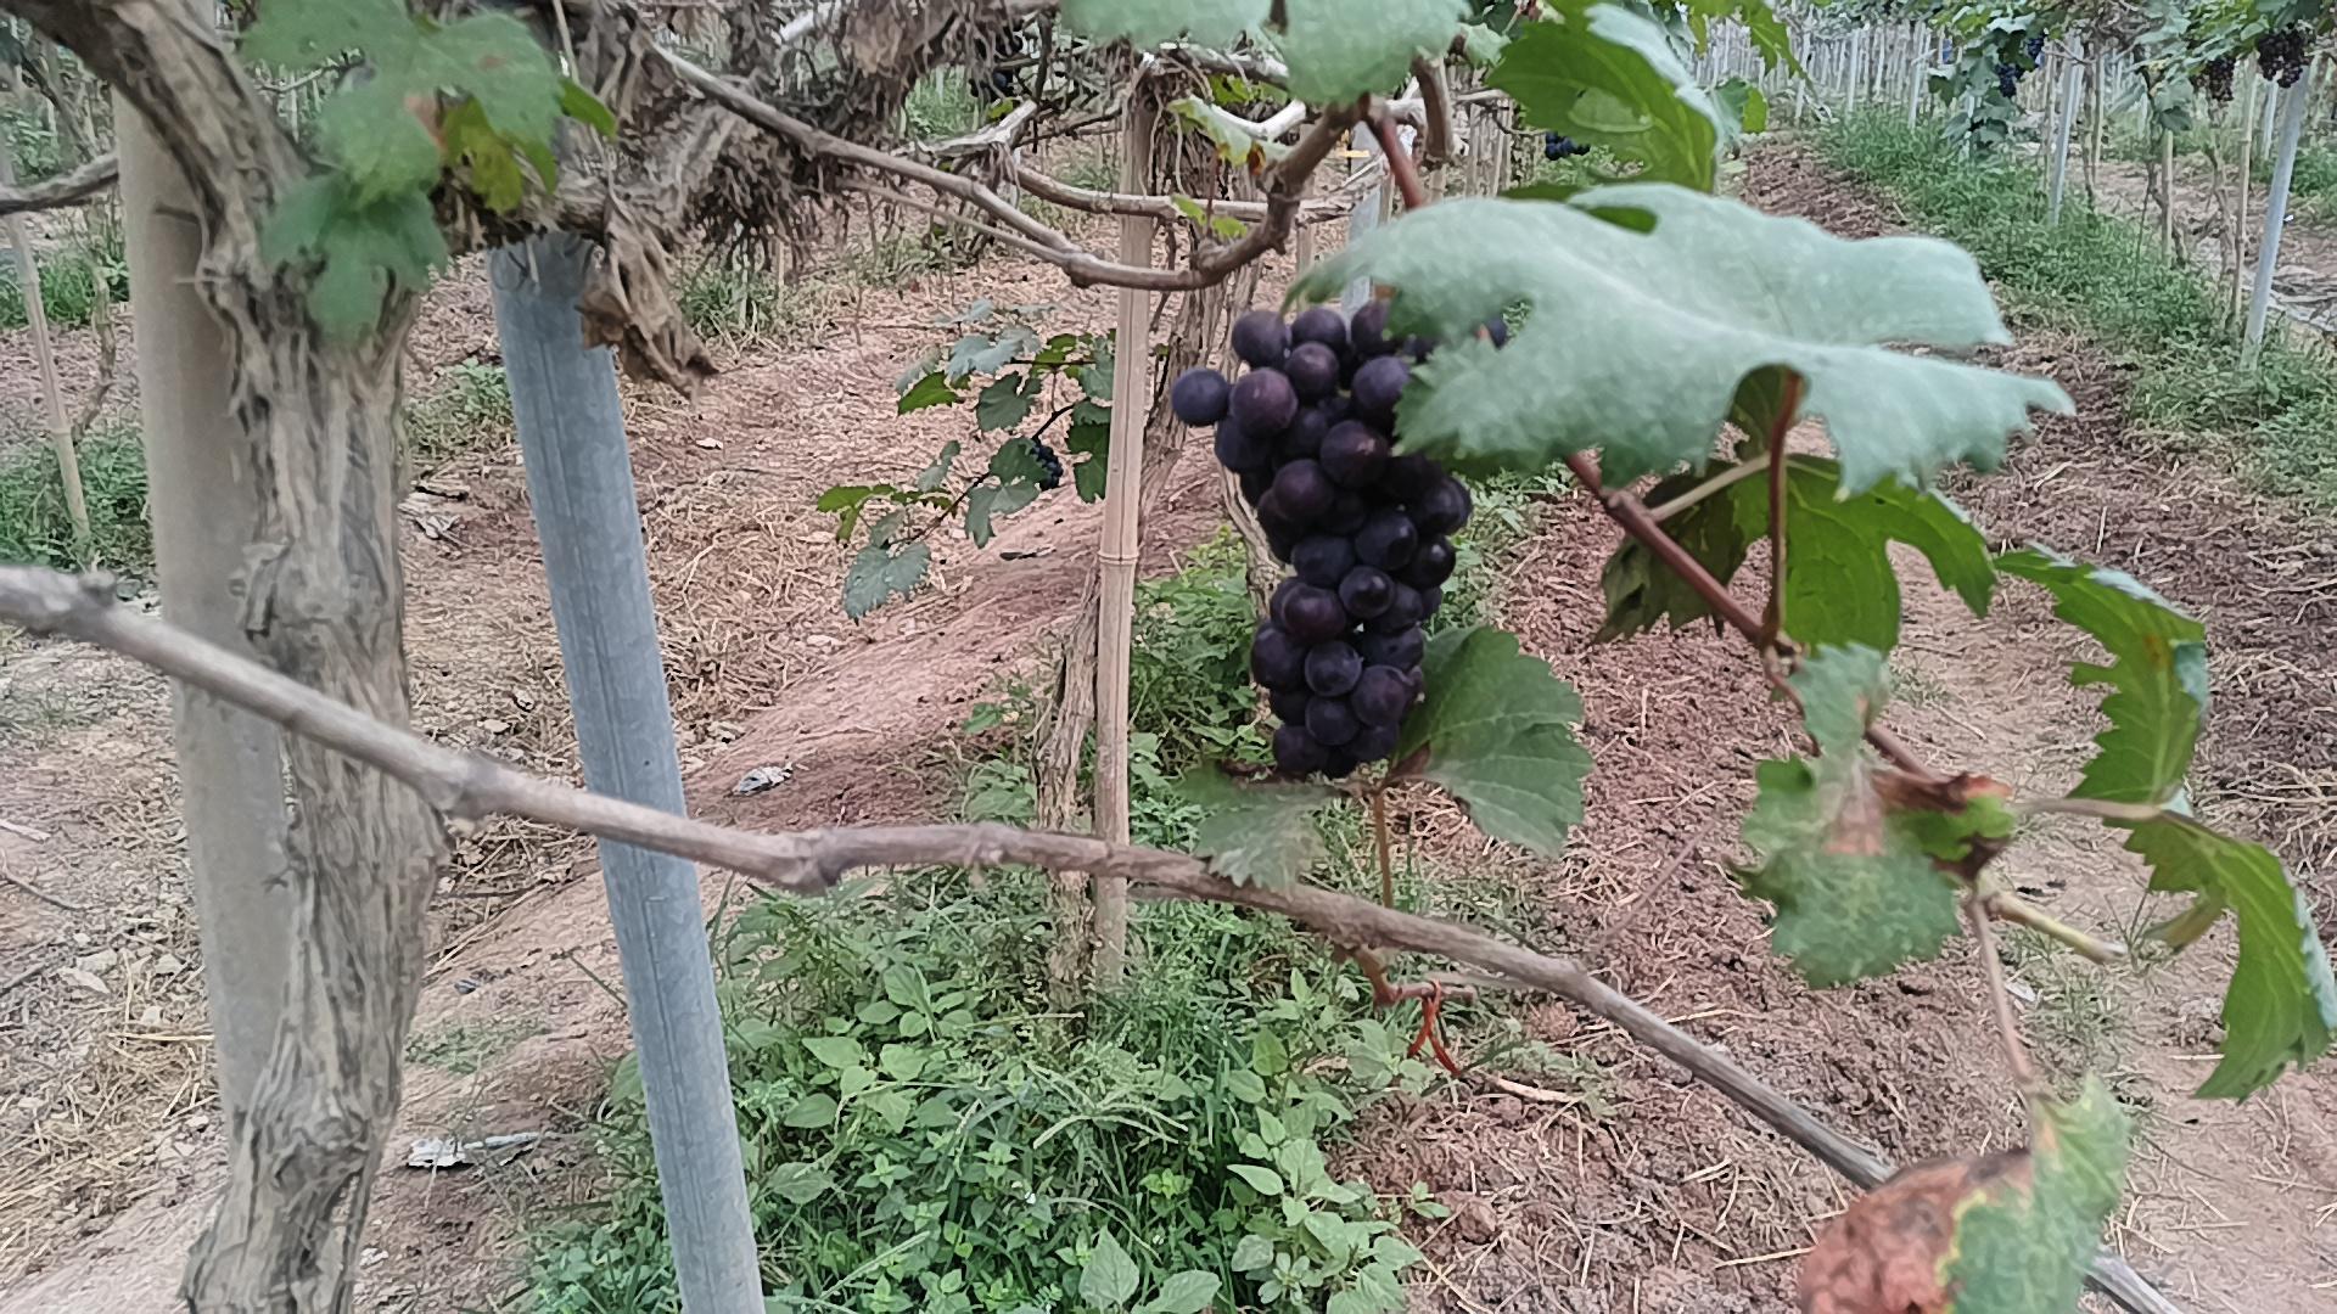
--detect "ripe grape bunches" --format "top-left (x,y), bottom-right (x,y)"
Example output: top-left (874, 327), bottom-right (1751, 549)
top-left (1171, 299), bottom-right (1472, 779)
top-left (2253, 24), bottom-right (2309, 89)
top-left (2017, 33), bottom-right (2045, 74)
top-left (2201, 55), bottom-right (2238, 103)
top-left (1993, 61), bottom-right (2024, 100)
top-left (1543, 131), bottom-right (1590, 161)
top-left (1030, 434), bottom-right (1063, 492)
